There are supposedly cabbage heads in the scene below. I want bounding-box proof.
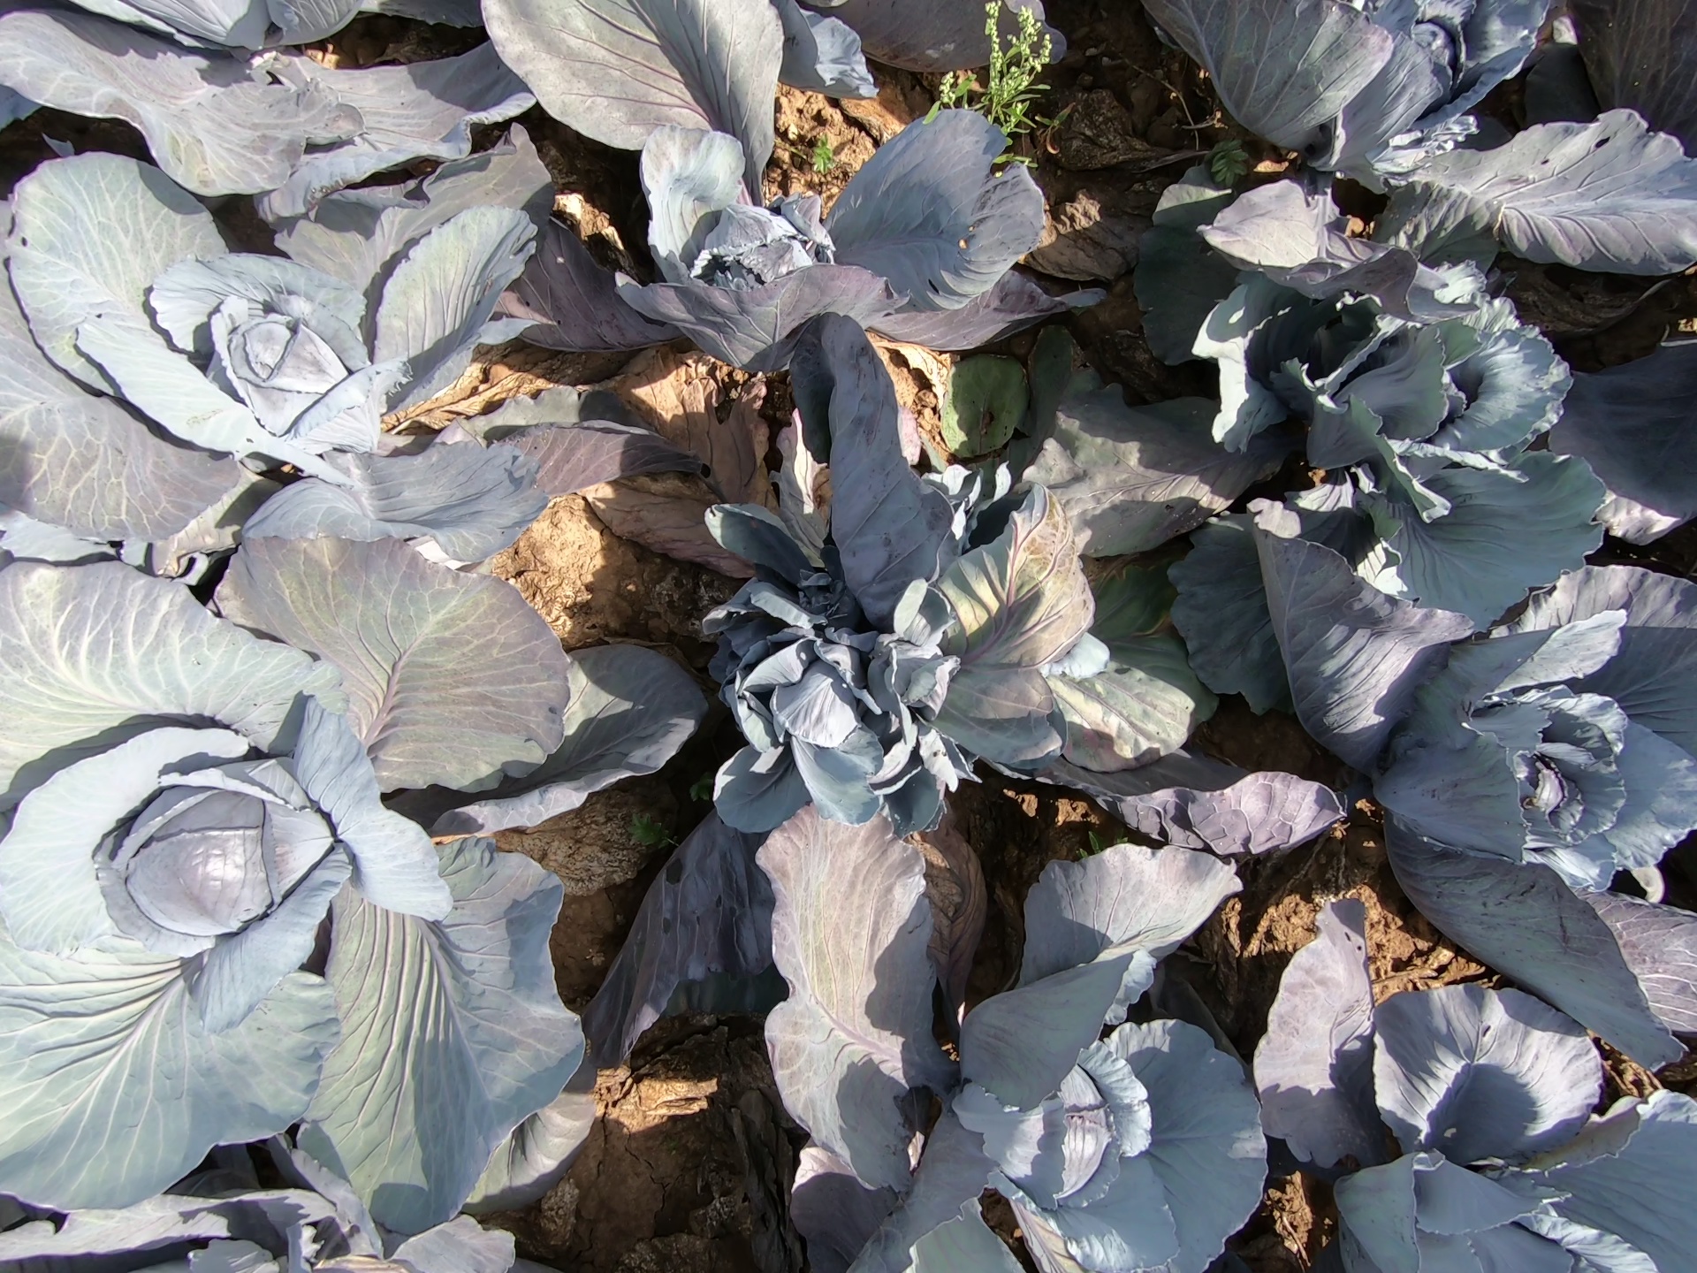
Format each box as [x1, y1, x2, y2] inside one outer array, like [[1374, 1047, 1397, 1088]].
[[703, 226, 820, 361], [1397, 1200, 1594, 1271], [207, 315, 354, 448], [1440, 743, 1565, 827], [119, 766, 327, 935], [1374, 20, 1460, 126], [968, 1051, 1112, 1199], [1363, 371, 1463, 449]]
